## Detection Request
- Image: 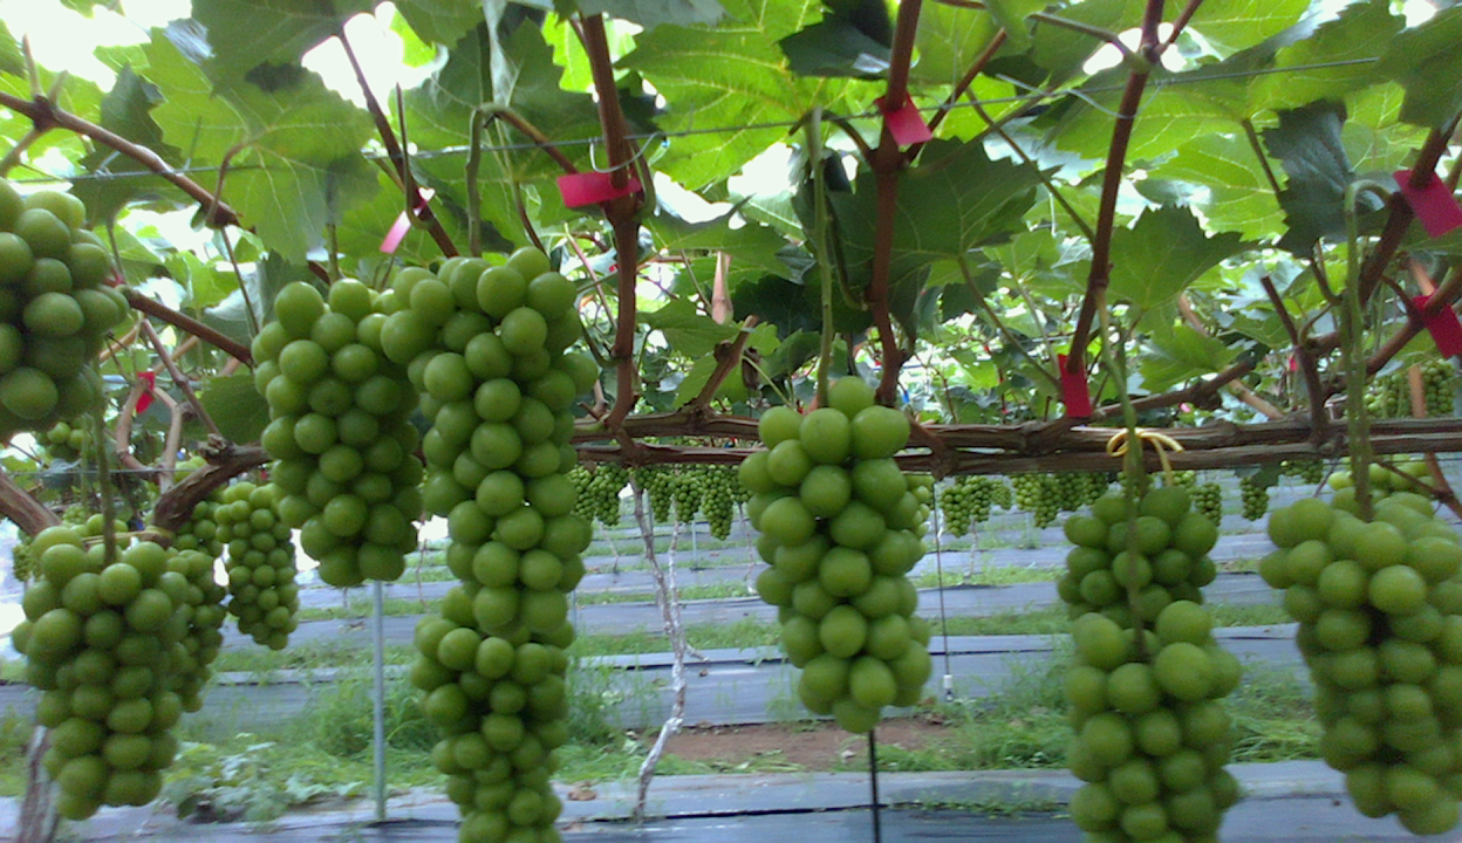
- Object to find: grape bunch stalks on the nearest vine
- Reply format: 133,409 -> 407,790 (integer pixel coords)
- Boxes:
812,104 -> 831,406
1095,292 -> 1148,657
1344,180 -> 1395,523
467,102 -> 582,255
93,361 -> 116,564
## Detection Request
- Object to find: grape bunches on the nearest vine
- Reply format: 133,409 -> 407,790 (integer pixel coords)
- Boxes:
1065,599 -> 1239,841
253,277 -> 424,585
409,587 -> 575,841
1259,484 -> 1461,832
378,247 -> 597,633
739,375 -> 931,733
1,179 -> 125,421
7,527 -> 187,818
